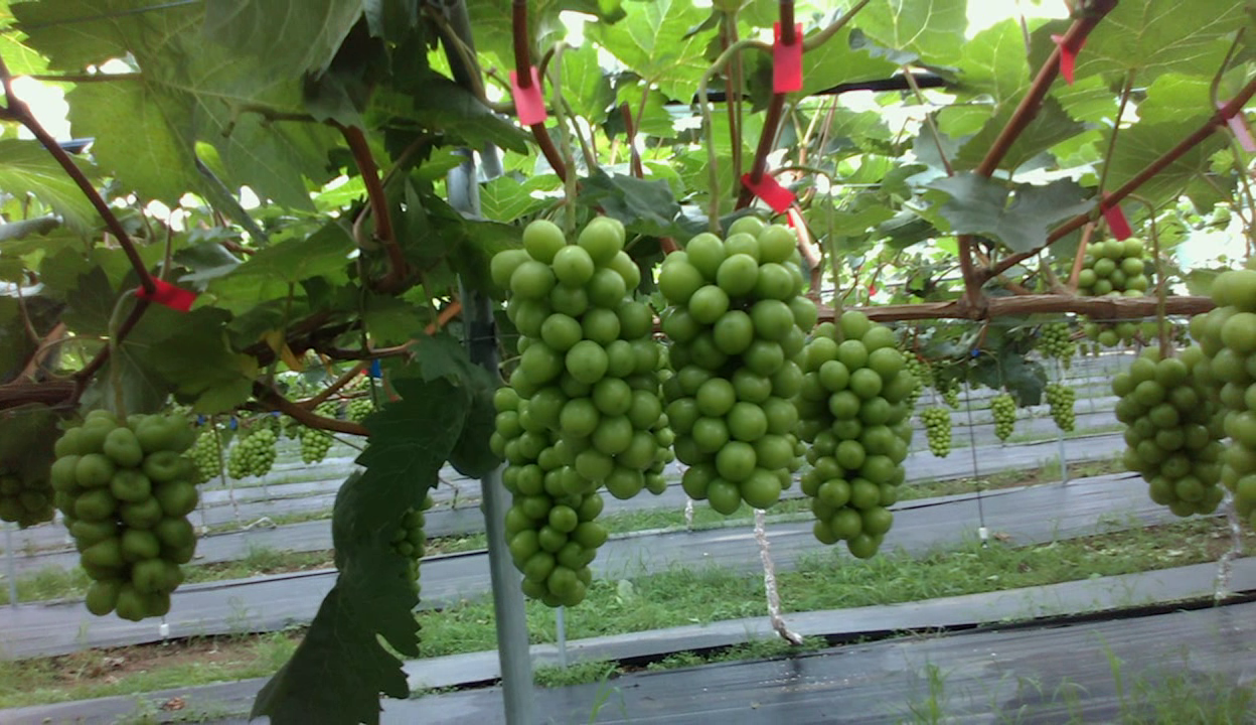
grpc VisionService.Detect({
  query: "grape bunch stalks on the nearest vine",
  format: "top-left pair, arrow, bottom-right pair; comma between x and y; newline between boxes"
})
536,40 -> 576,243
698,39 -> 772,233
109,287 -> 137,425
769,165 -> 844,344
1126,193 -> 1166,359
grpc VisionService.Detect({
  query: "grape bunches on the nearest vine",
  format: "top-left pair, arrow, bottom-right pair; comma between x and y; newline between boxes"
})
52,407 -> 201,620
793,312 -> 913,558
1193,258 -> 1255,529
661,217 -> 815,514
1109,346 -> 1224,517
490,388 -> 605,606
491,215 -> 660,497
